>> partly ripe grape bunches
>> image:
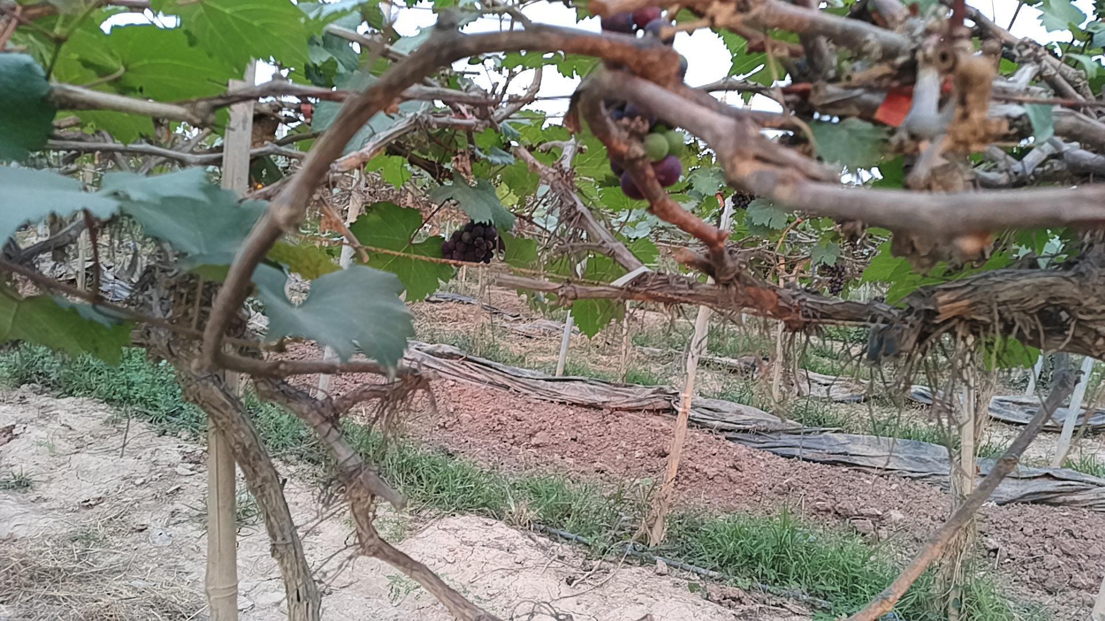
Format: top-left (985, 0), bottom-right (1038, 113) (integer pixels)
top-left (441, 220), bottom-right (505, 263)
top-left (574, 8), bottom-right (687, 200)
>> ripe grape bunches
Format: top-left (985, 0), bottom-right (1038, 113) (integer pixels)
top-left (819, 264), bottom-right (850, 295)
top-left (730, 191), bottom-right (755, 209)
